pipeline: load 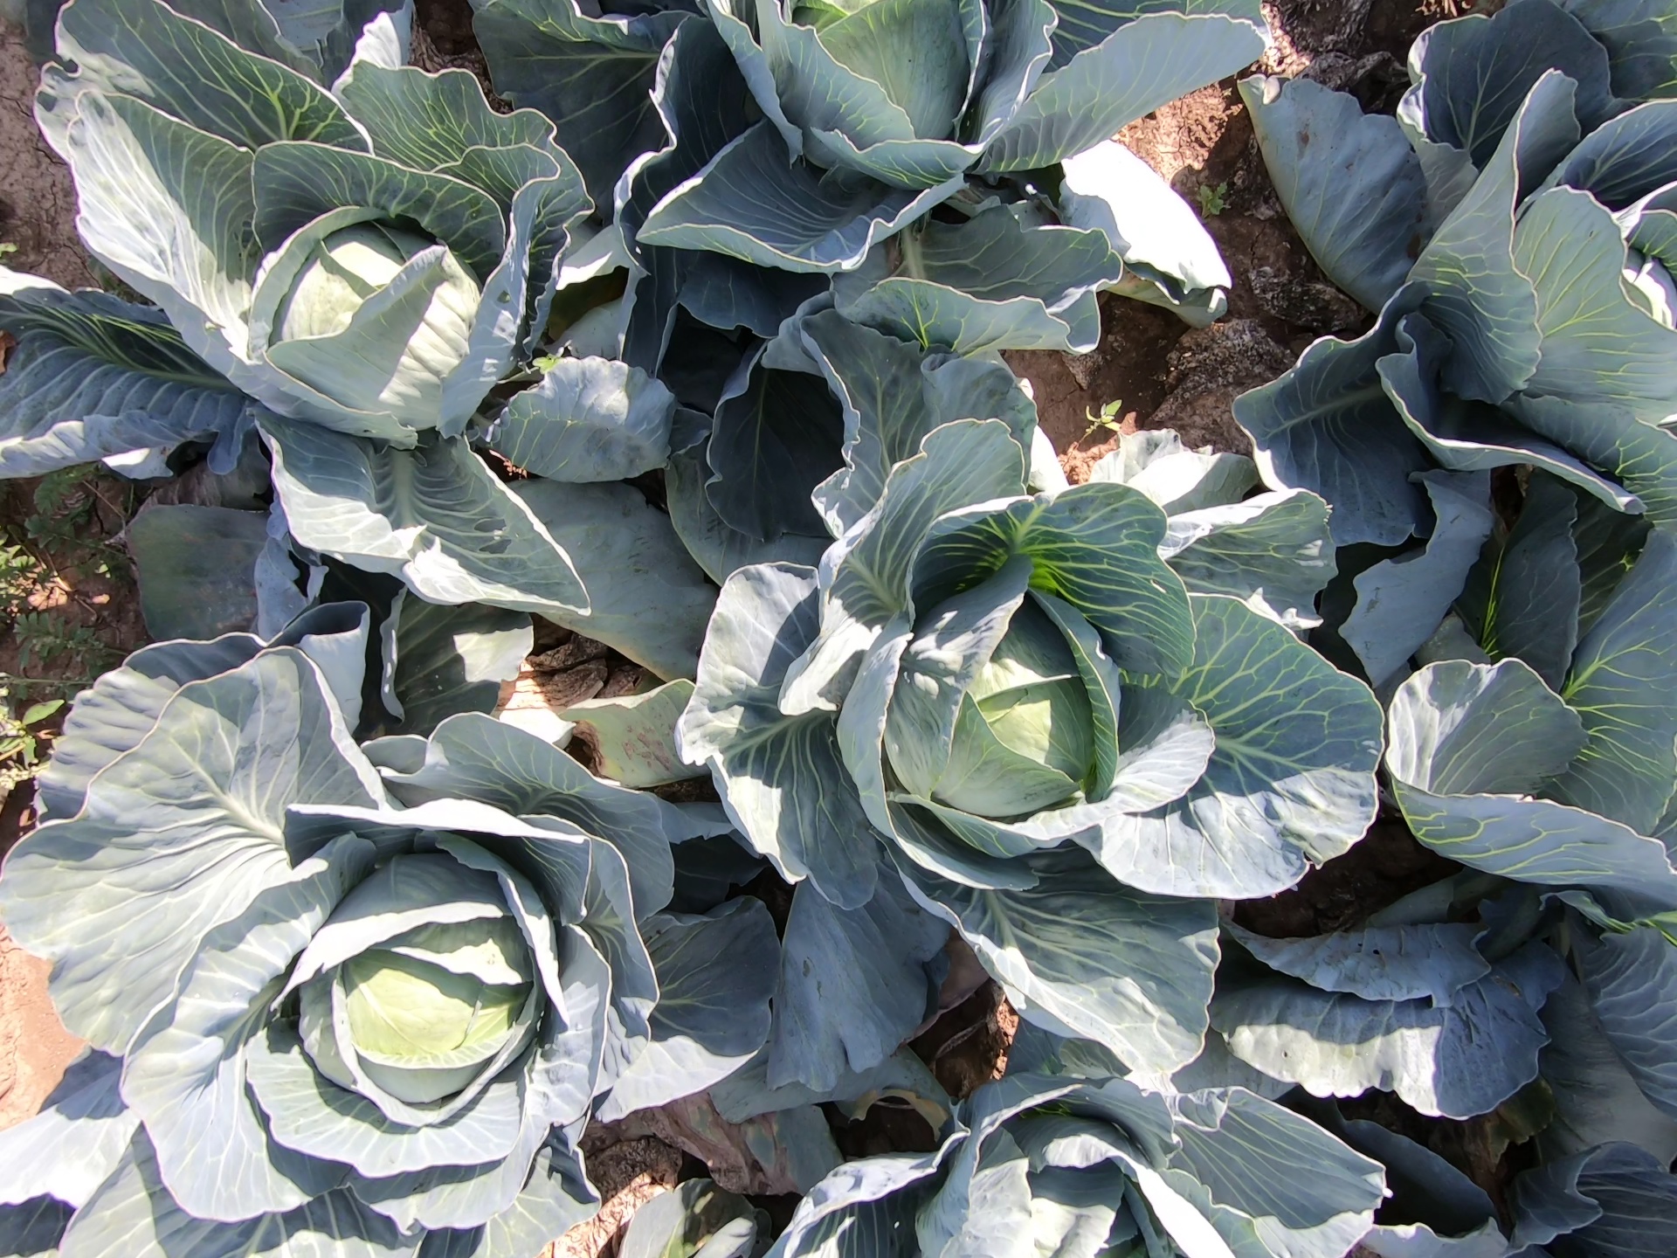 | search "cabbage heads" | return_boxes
[255,224,480,427]
[1517,233,1667,408]
[302,850,548,1110]
[790,3,978,160]
[891,602,1113,819]
[924,1141,1116,1256]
